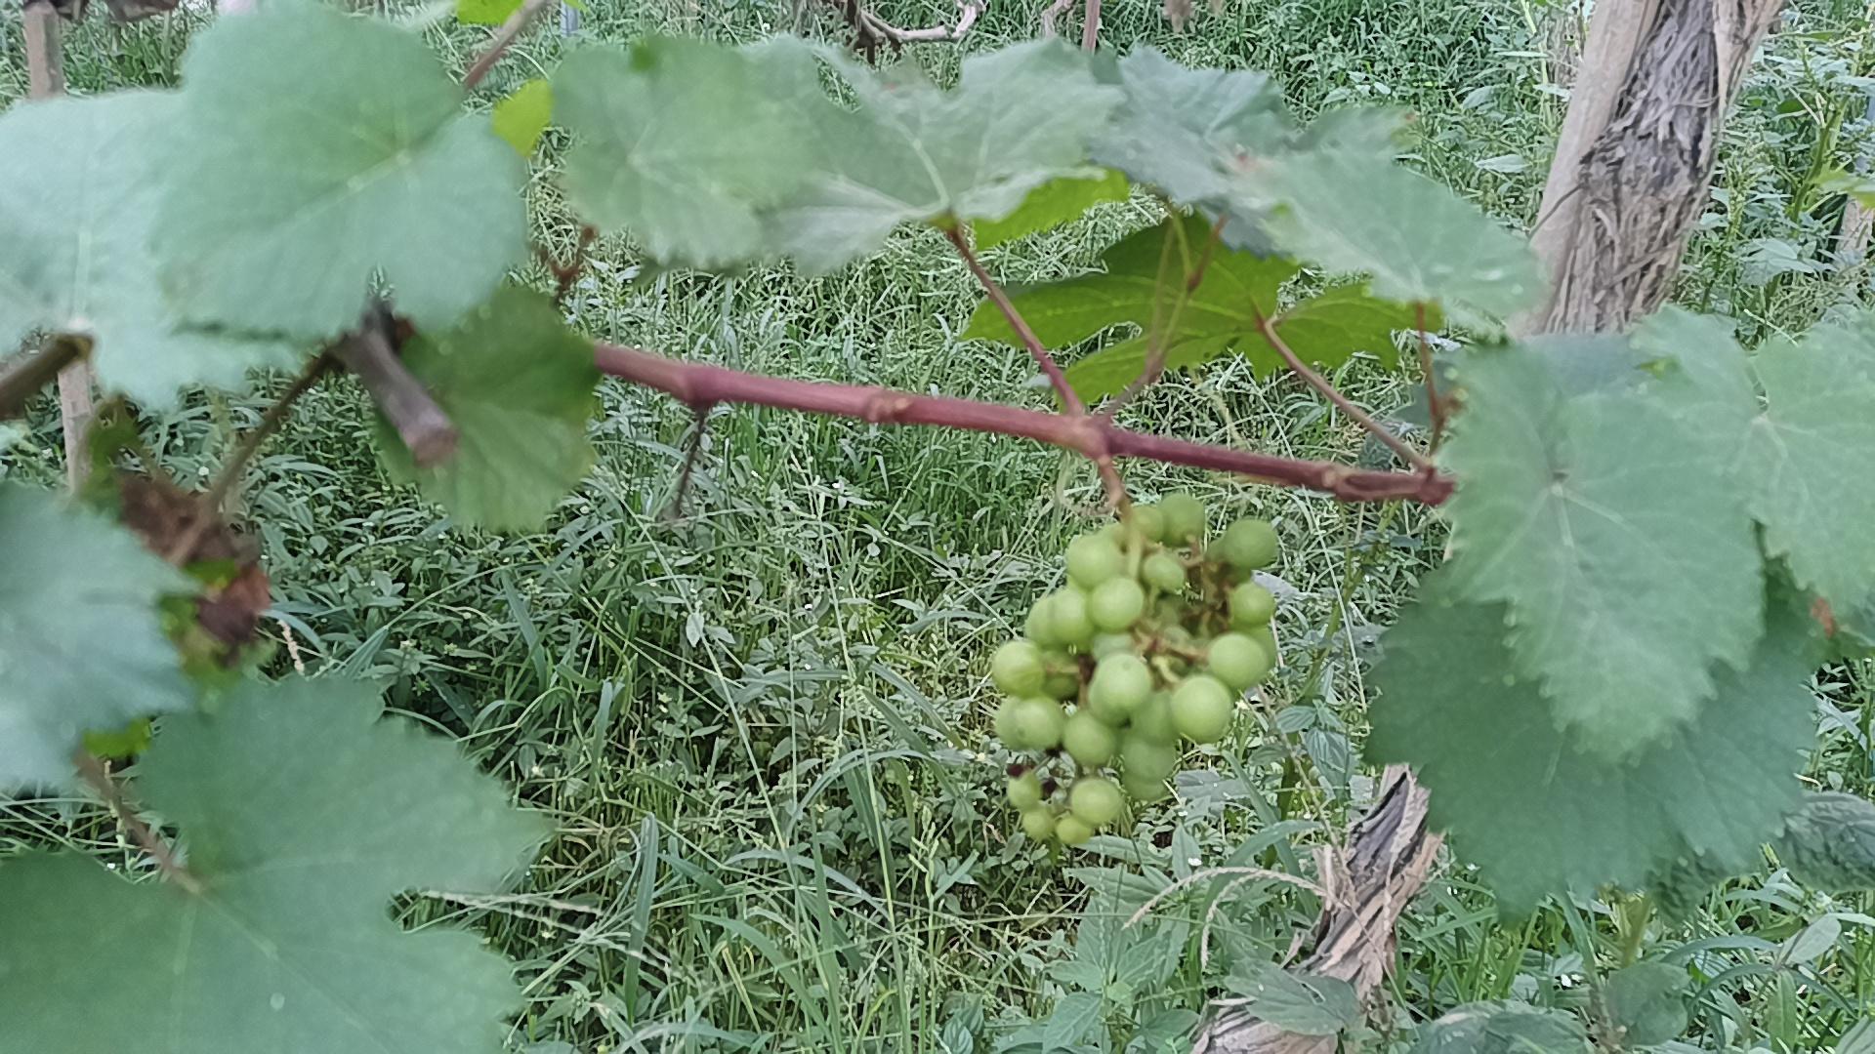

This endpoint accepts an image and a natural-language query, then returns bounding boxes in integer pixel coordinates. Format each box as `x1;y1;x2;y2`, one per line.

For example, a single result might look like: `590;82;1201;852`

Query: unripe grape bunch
990;494;1278;846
